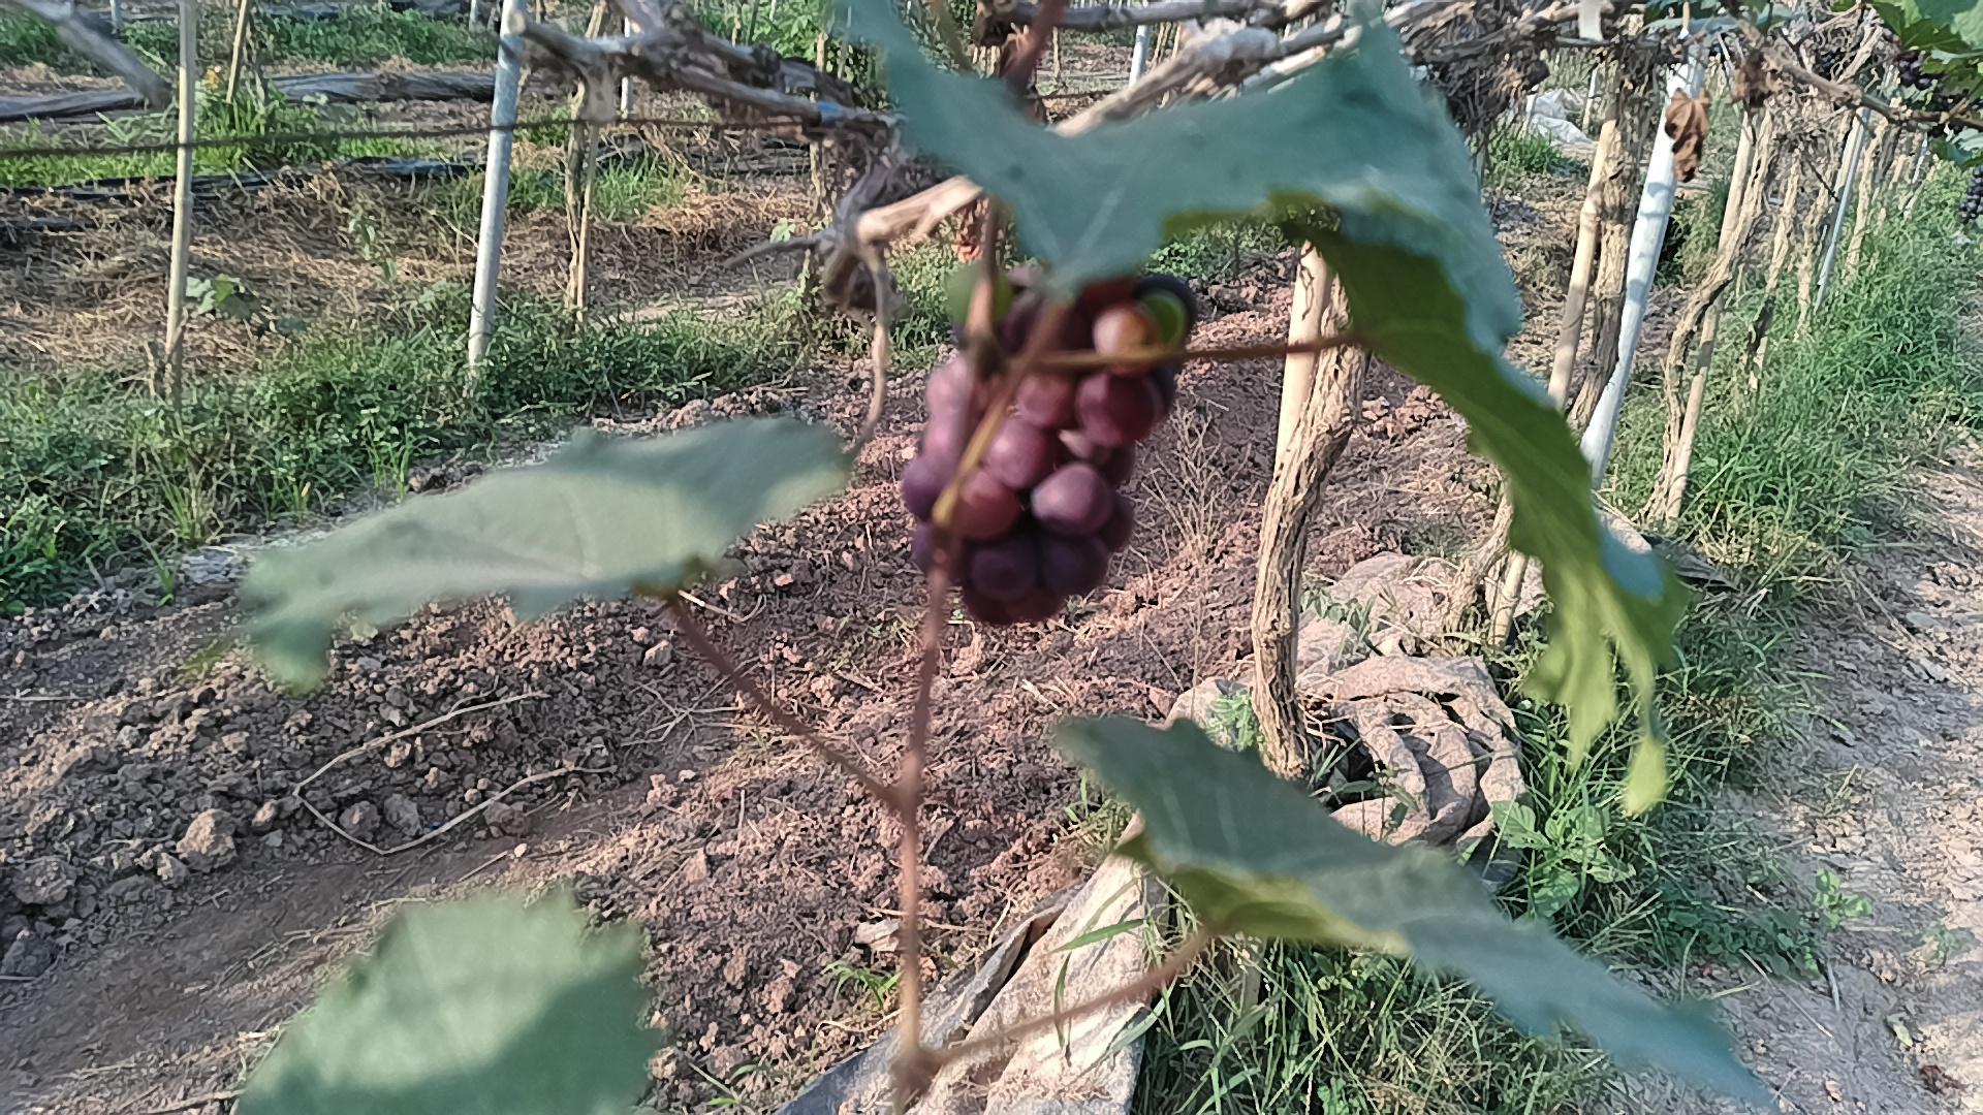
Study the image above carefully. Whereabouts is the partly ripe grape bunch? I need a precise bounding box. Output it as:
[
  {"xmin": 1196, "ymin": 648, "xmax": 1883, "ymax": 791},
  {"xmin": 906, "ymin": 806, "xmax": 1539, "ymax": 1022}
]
[{"xmin": 899, "ymin": 259, "xmax": 1200, "ymax": 625}]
